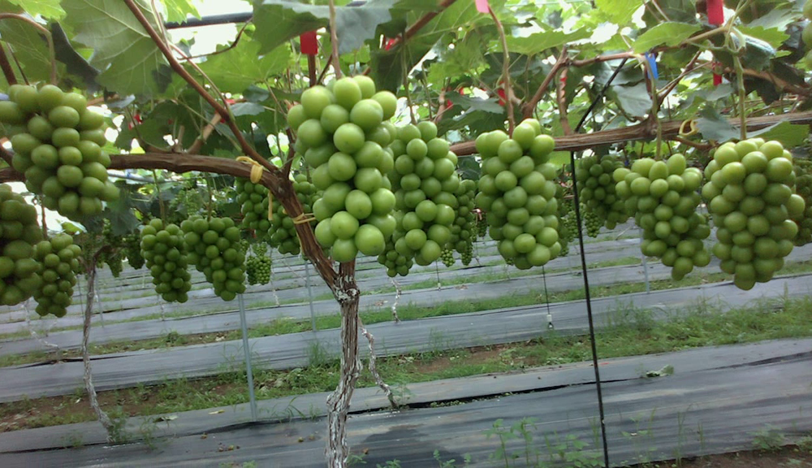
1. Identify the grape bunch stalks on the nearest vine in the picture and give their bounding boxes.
[733,58,747,140]
[582,53,661,160]
[2,13,55,85]
[402,33,416,123]
[489,6,513,138]
[328,3,342,79]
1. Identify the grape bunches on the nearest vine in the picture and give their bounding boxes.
[474,118,561,270]
[284,75,398,263]
[702,138,805,291]
[1,83,122,221]
[388,121,460,266]
[0,183,42,305]
[613,153,712,281]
